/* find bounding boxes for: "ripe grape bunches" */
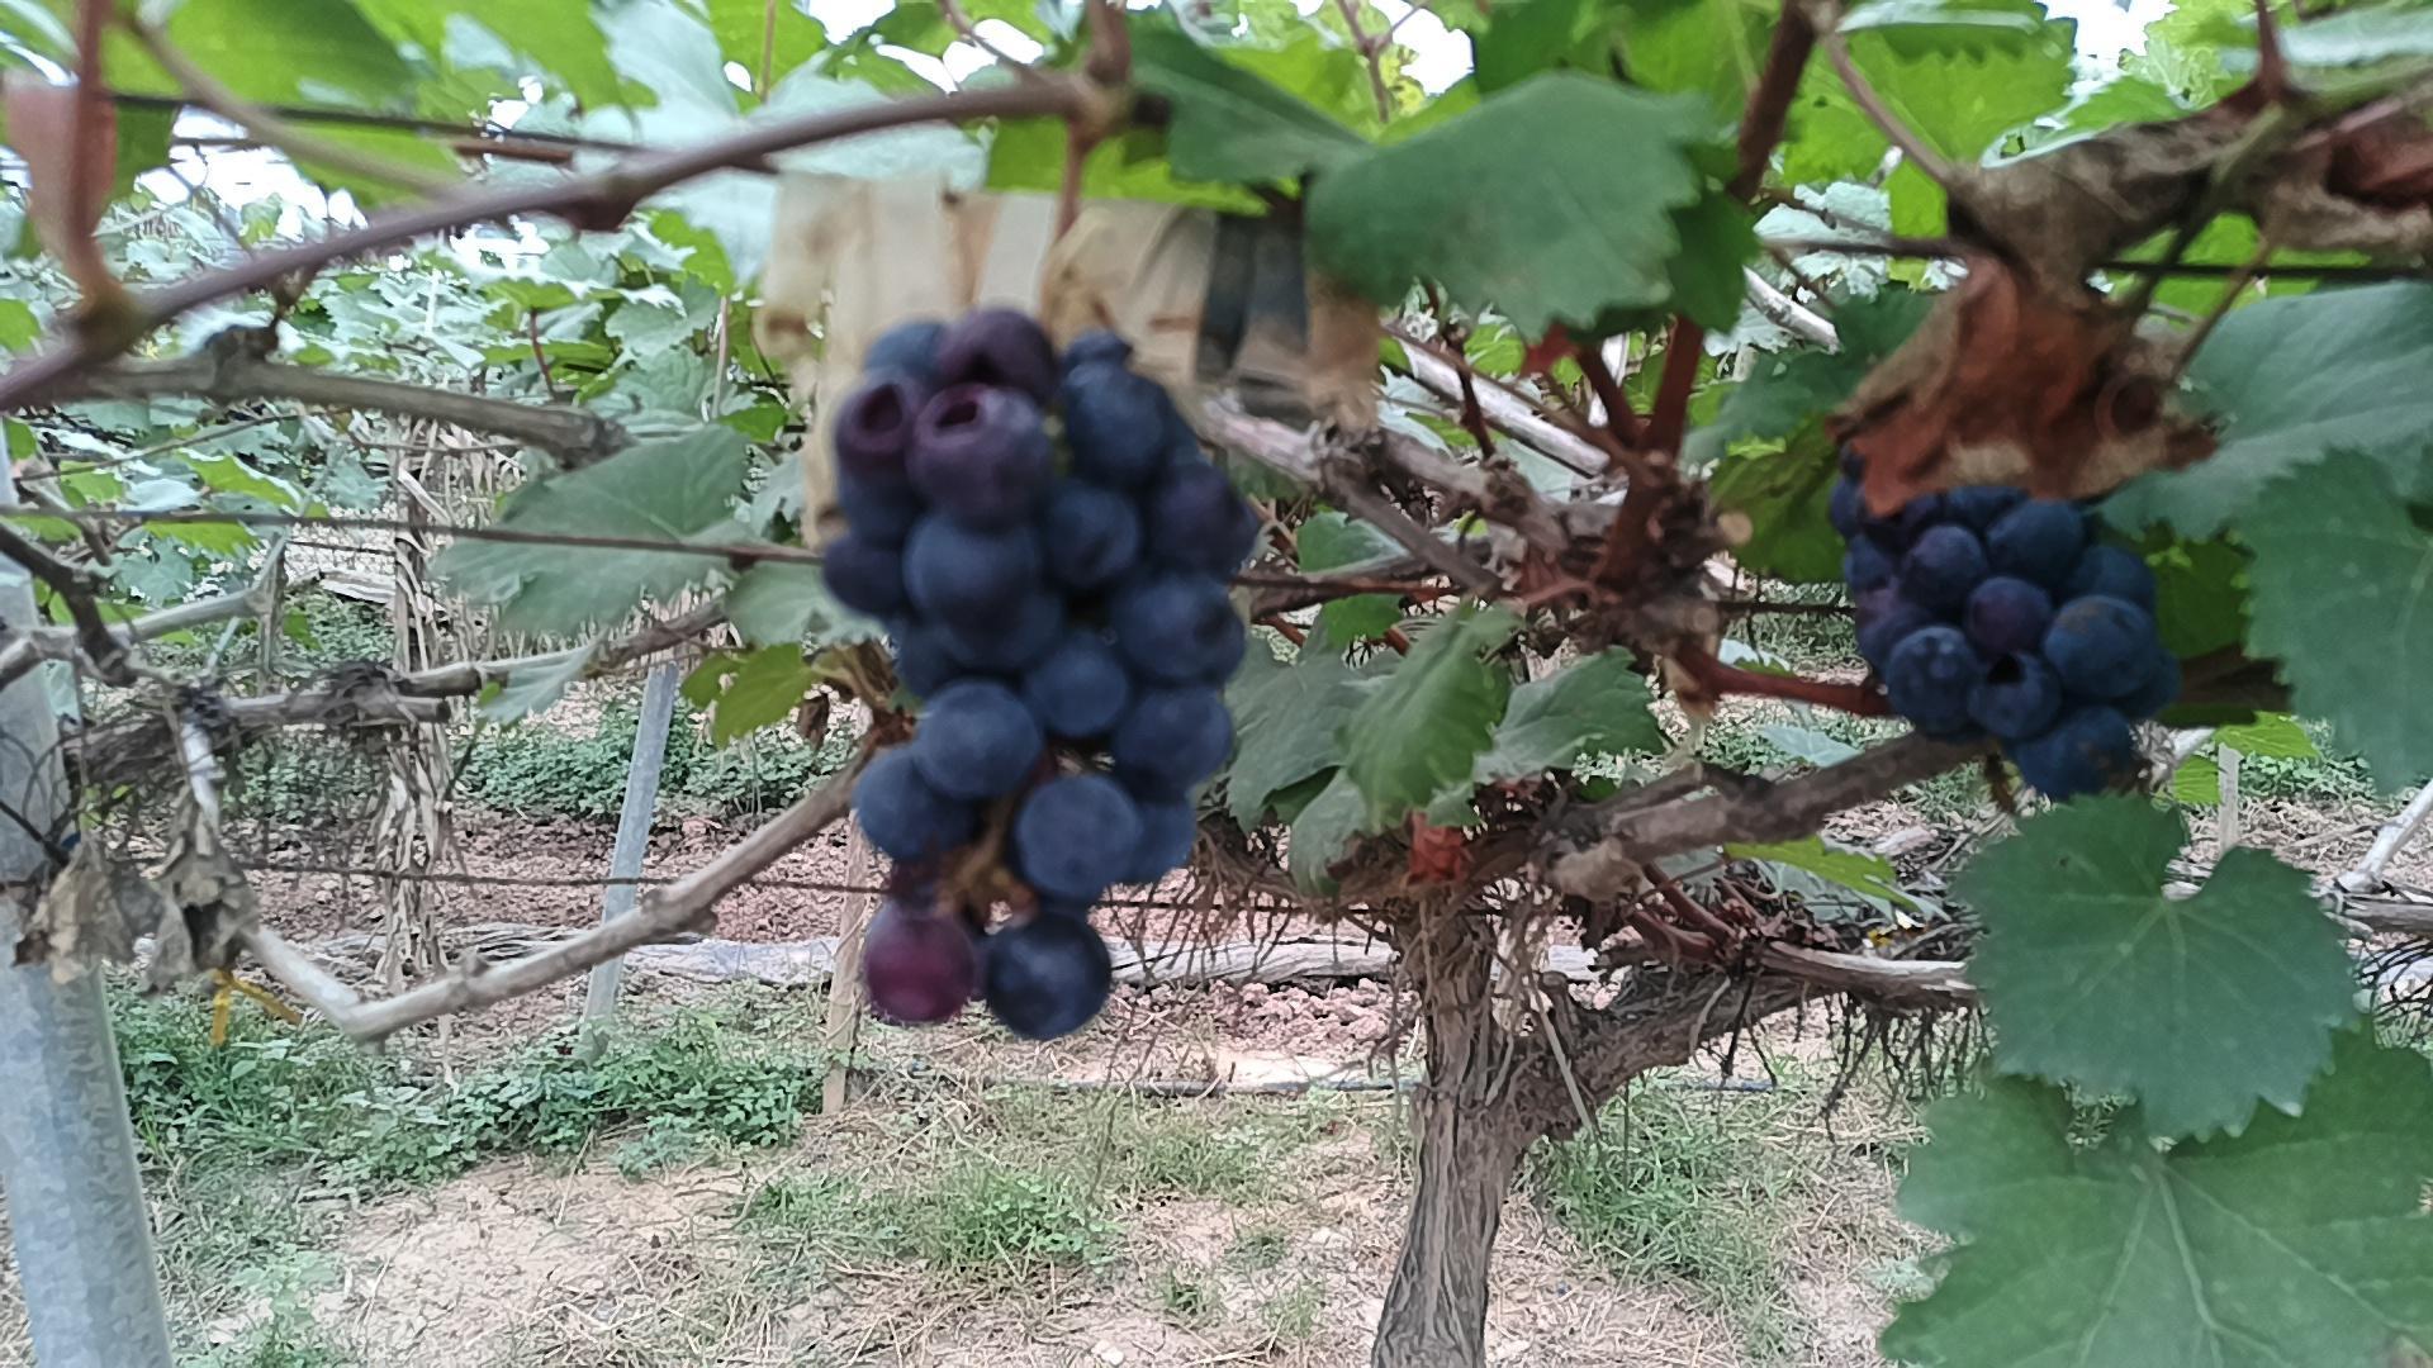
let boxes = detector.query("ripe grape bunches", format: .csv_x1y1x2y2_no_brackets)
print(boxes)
821,308,1255,1039
1830,453,2178,802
